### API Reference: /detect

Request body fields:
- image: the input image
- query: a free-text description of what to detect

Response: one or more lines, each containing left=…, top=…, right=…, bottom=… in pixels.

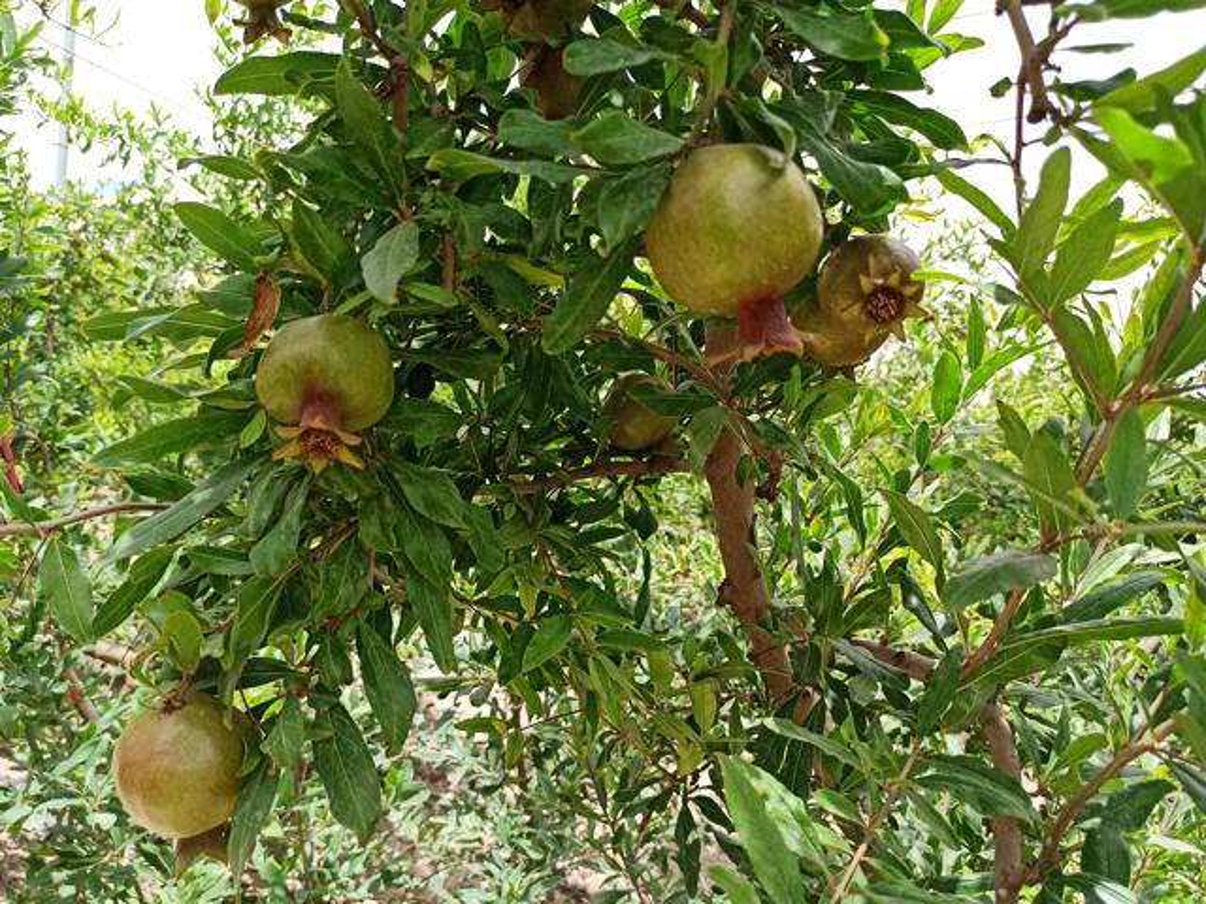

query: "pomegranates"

left=256, top=311, right=396, bottom=482
left=601, top=375, right=684, bottom=471
left=816, top=234, right=931, bottom=347
left=111, top=689, right=241, bottom=880
left=643, top=141, right=829, bottom=363
left=791, top=296, right=891, bottom=380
